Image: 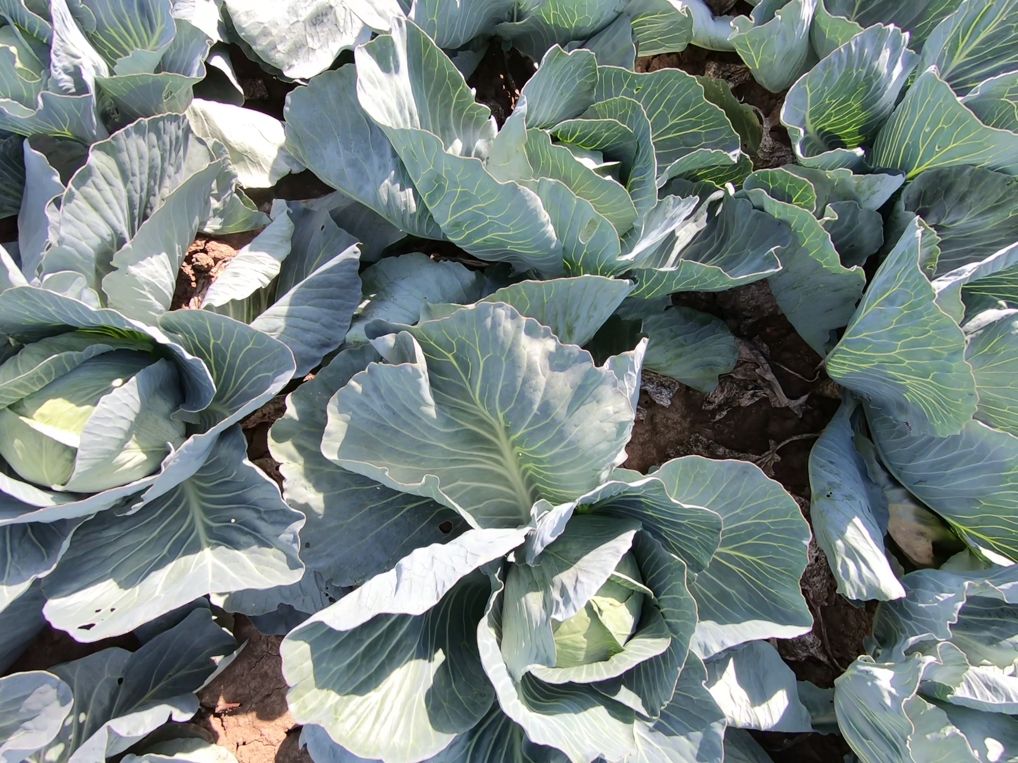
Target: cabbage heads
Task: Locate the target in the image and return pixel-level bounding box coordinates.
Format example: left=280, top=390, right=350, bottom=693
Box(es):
left=2, top=338, right=175, bottom=494
left=881, top=671, right=1015, bottom=762
left=541, top=145, right=615, bottom=219
left=506, top=532, right=640, bottom=674
left=0, top=19, right=77, bottom=101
